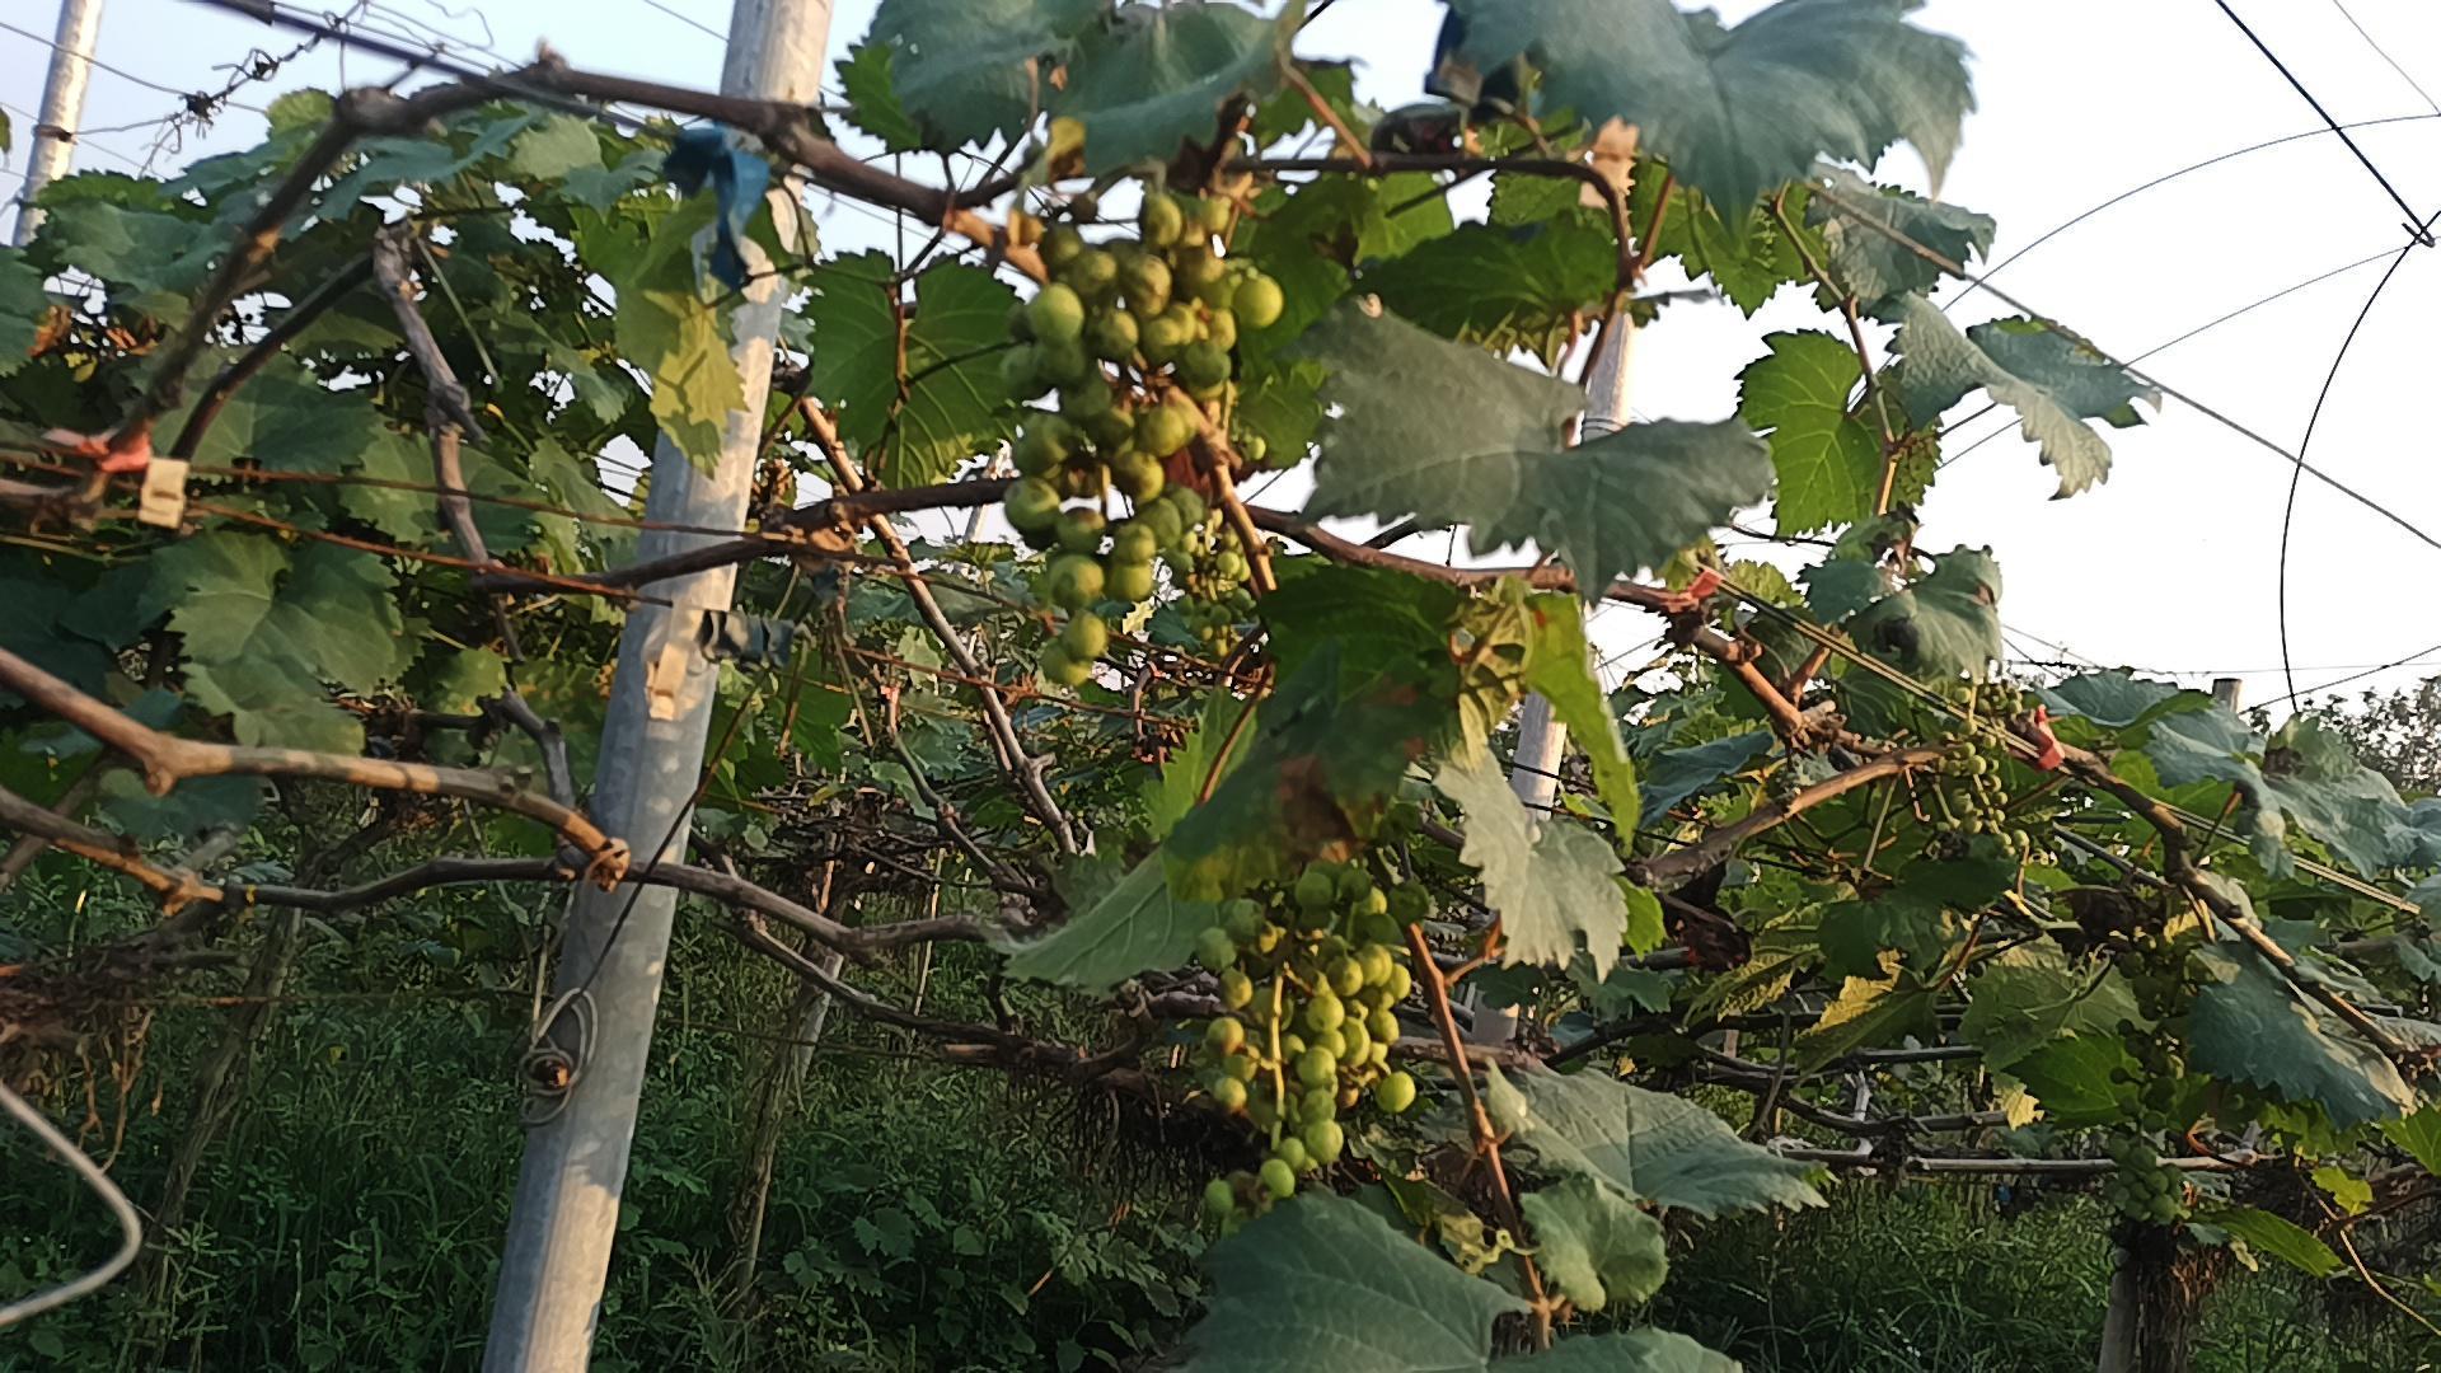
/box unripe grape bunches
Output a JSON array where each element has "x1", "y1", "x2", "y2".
[
  {"x1": 2107, "y1": 1017, "x2": 2178, "y2": 1223},
  {"x1": 1004, "y1": 183, "x2": 1283, "y2": 684},
  {"x1": 1201, "y1": 859, "x2": 1420, "y2": 1214}
]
